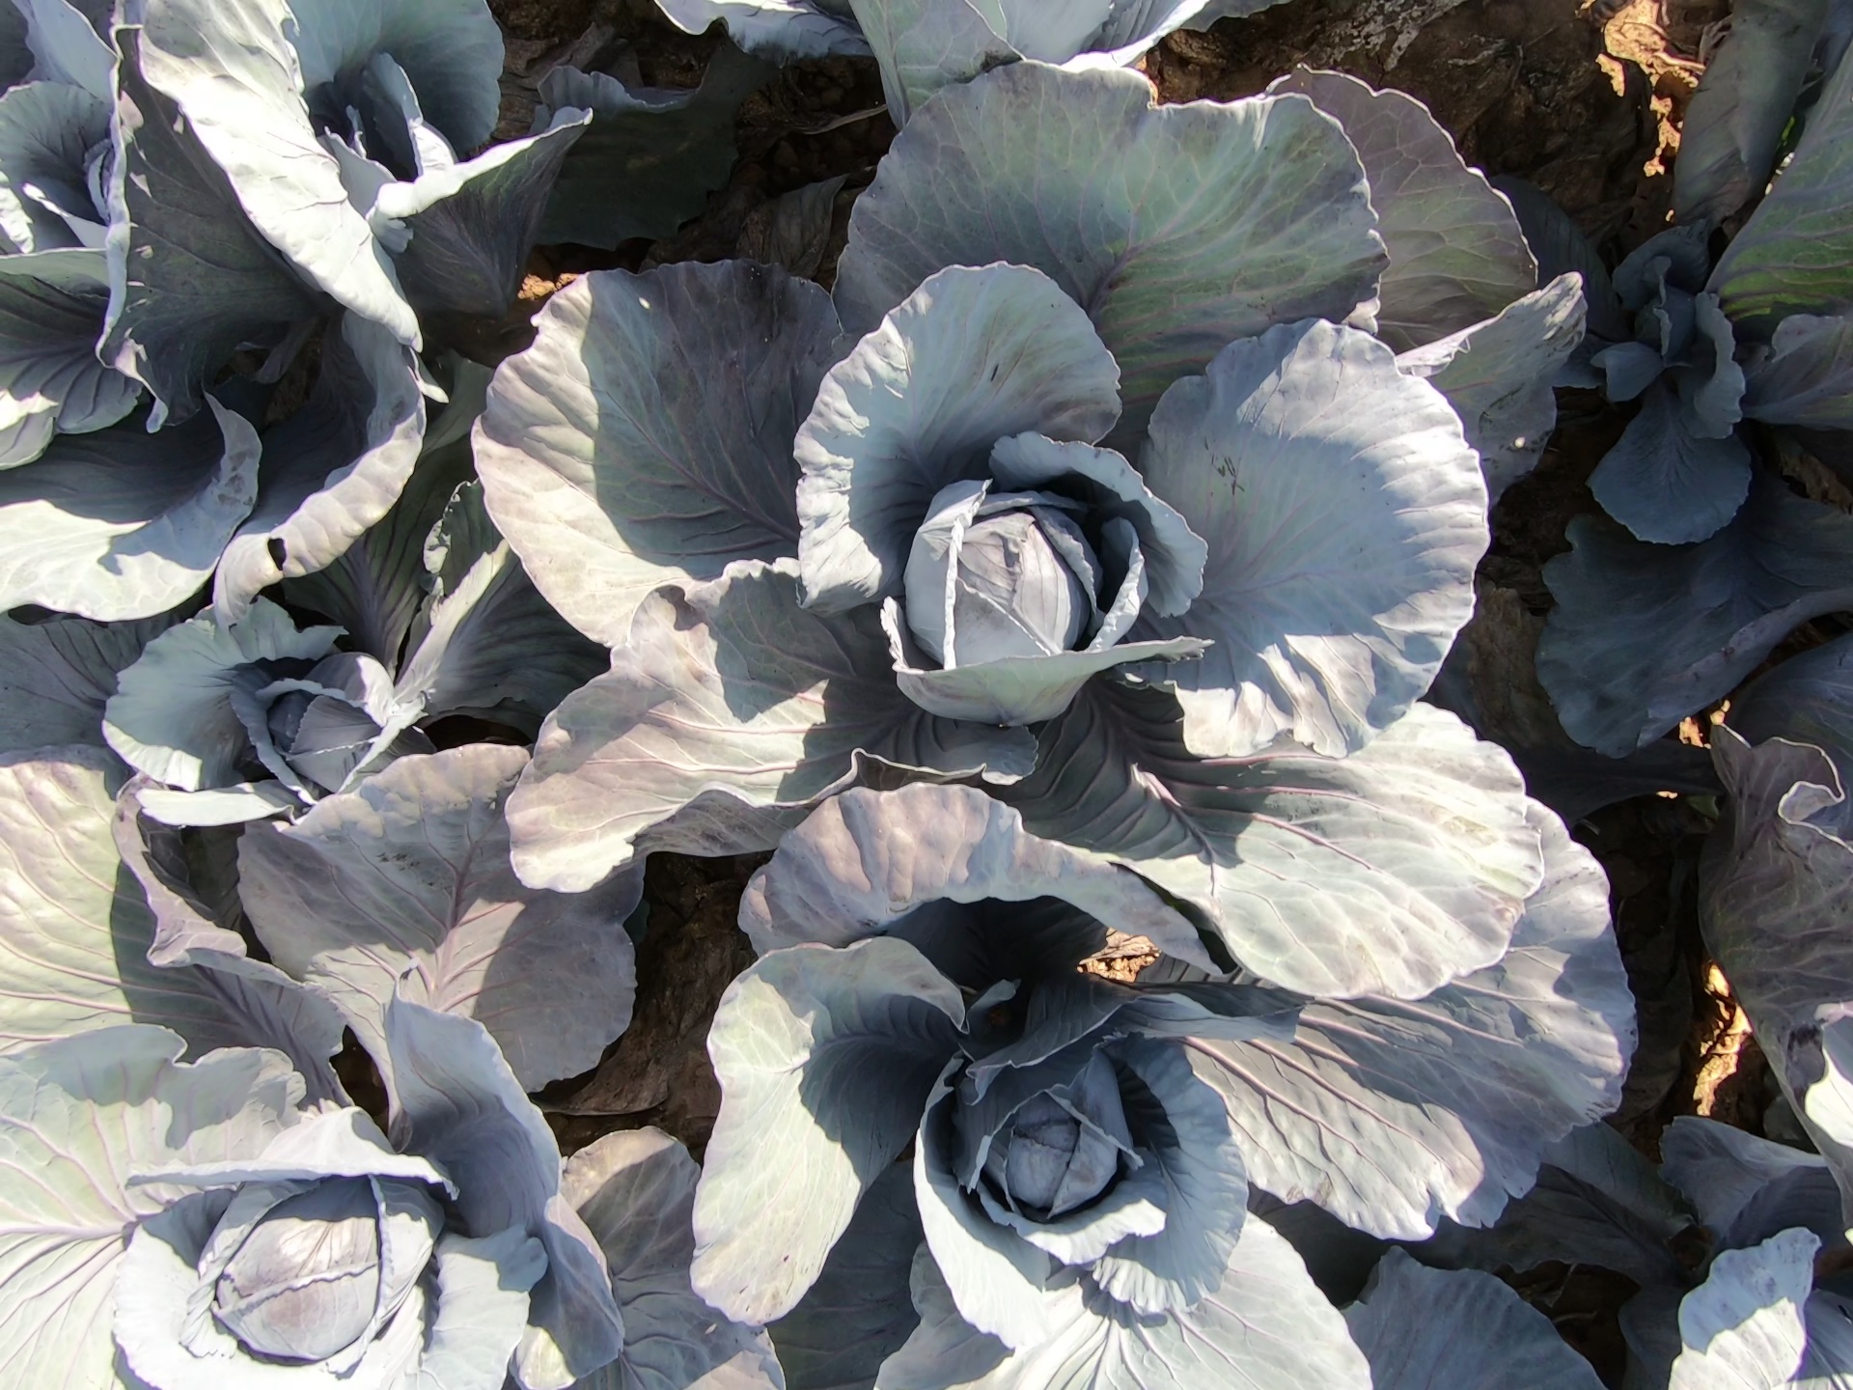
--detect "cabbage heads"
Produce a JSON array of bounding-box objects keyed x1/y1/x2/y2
[
  {"x1": 974, "y1": 1049, "x2": 1120, "y2": 1207},
  {"x1": 209, "y1": 1162, "x2": 432, "y2": 1363},
  {"x1": 923, "y1": 502, "x2": 1091, "y2": 693},
  {"x1": 91, "y1": 134, "x2": 197, "y2": 235},
  {"x1": 271, "y1": 672, "x2": 380, "y2": 771}
]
